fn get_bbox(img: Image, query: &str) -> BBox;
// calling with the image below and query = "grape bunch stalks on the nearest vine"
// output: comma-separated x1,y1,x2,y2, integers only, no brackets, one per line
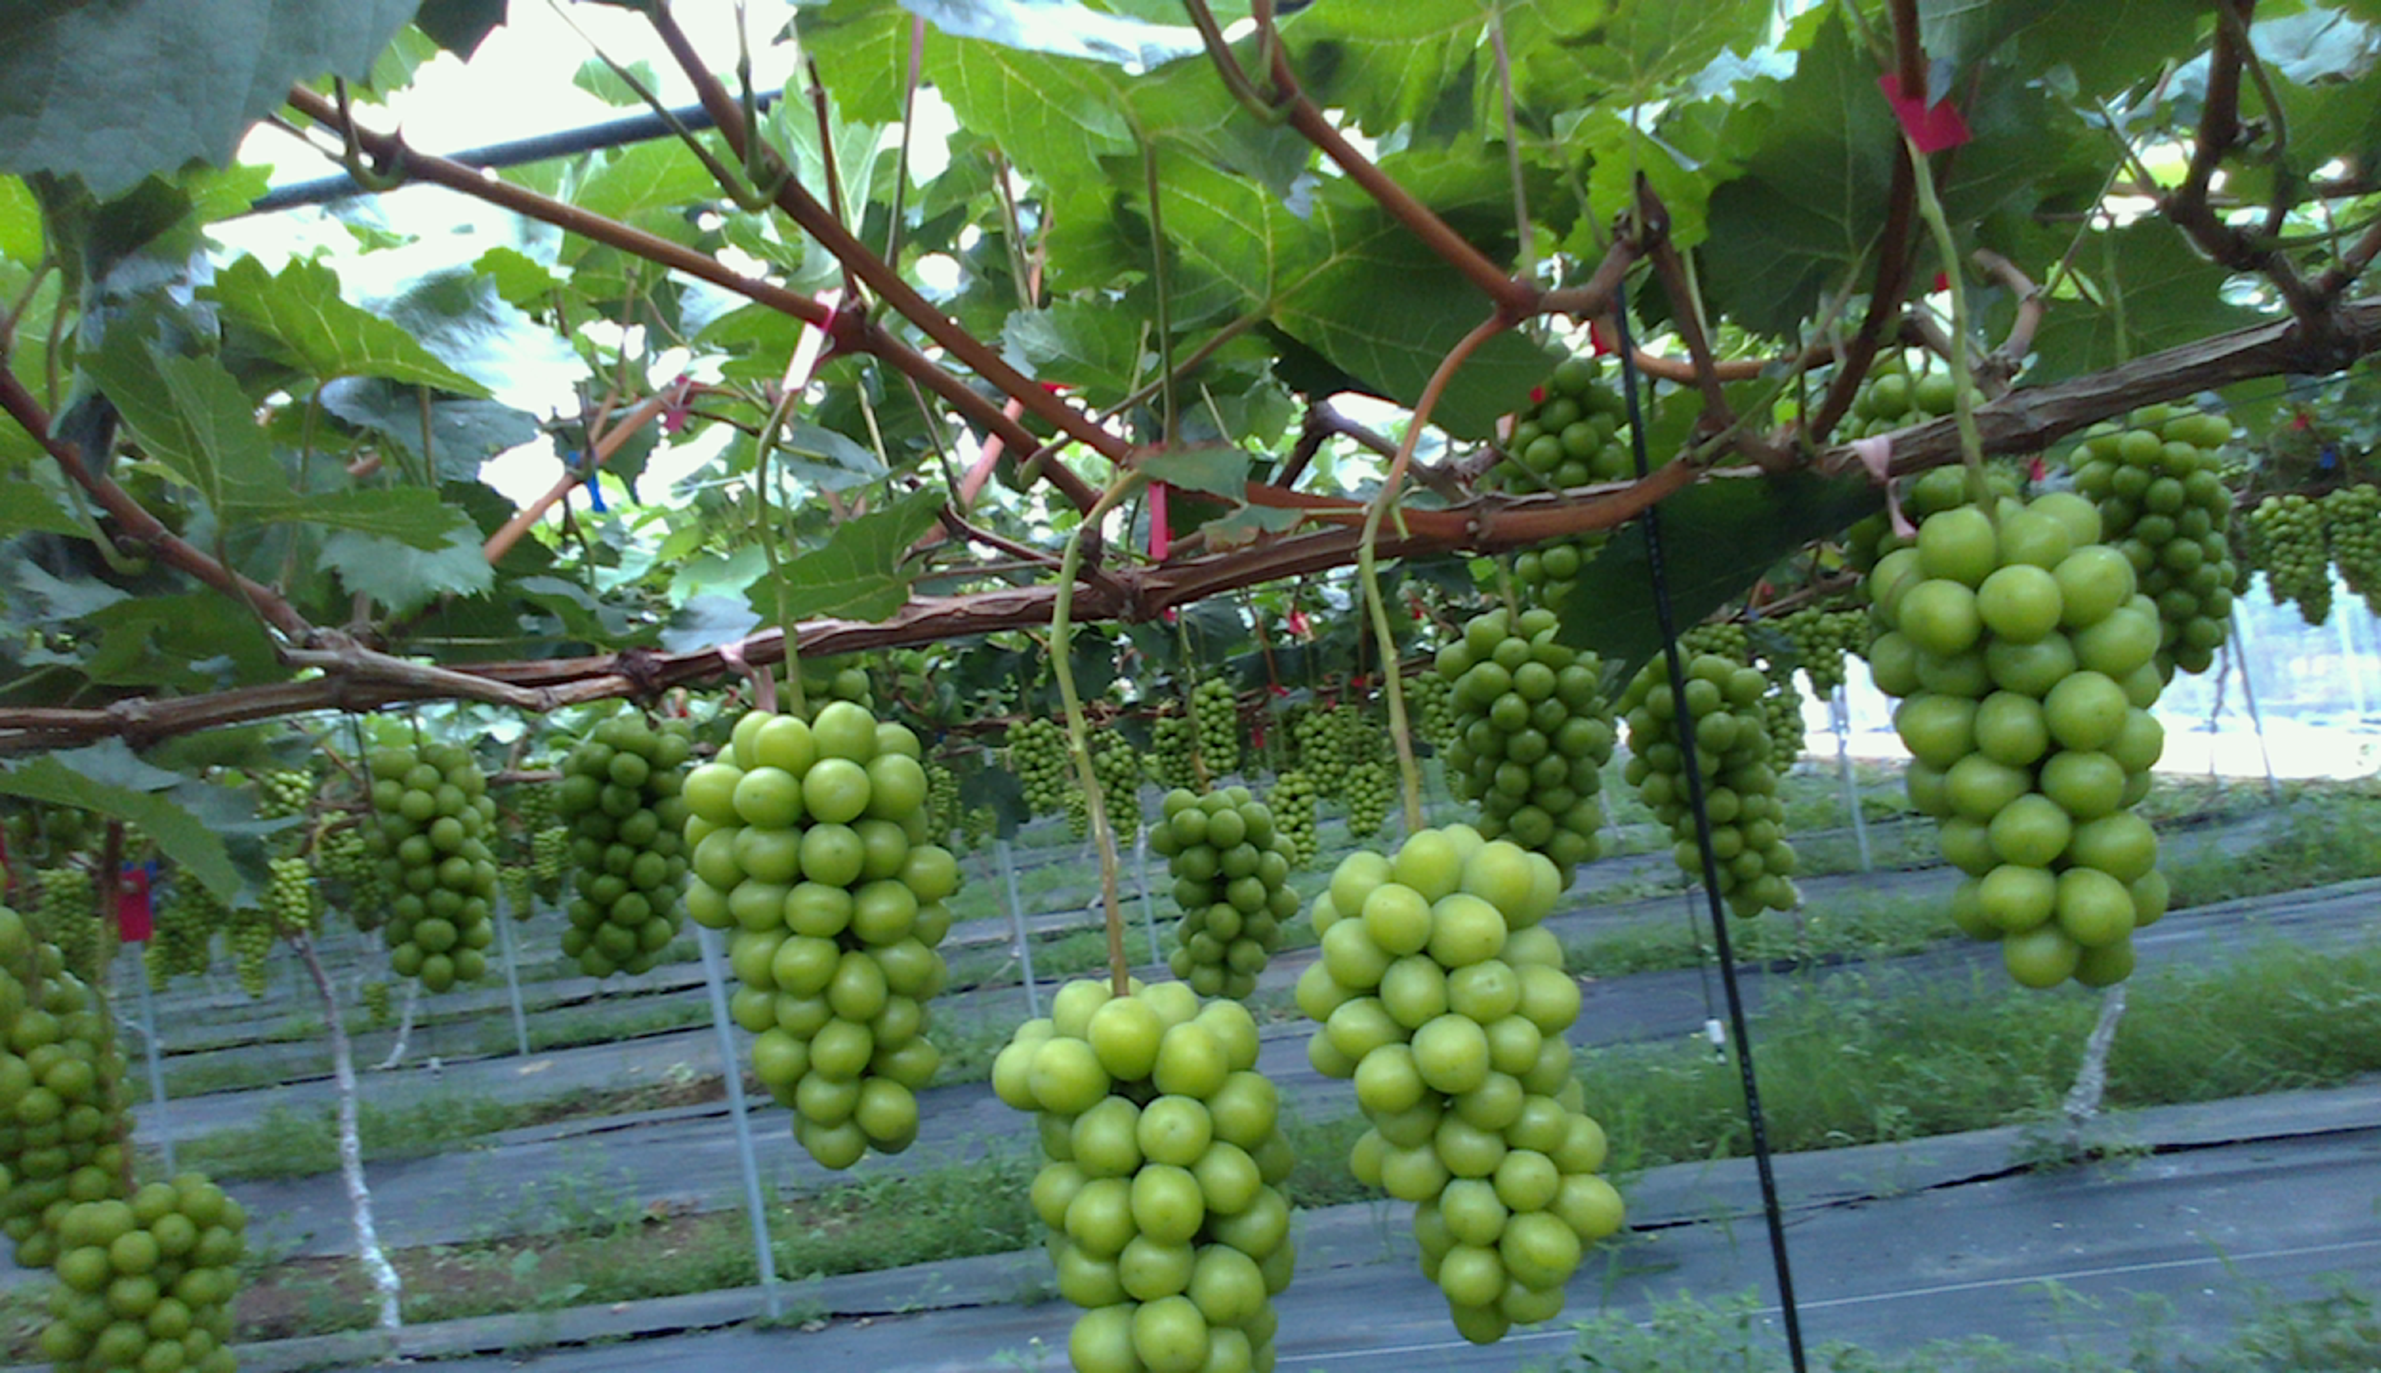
1358,311,1521,835
1047,469,1149,995
1910,137,1998,523
754,345,841,721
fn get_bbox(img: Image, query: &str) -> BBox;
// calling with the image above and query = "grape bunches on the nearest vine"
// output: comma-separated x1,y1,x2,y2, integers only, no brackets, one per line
681,700,958,1167
992,976,1297,1371
1295,822,1624,1344
1868,490,2169,990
